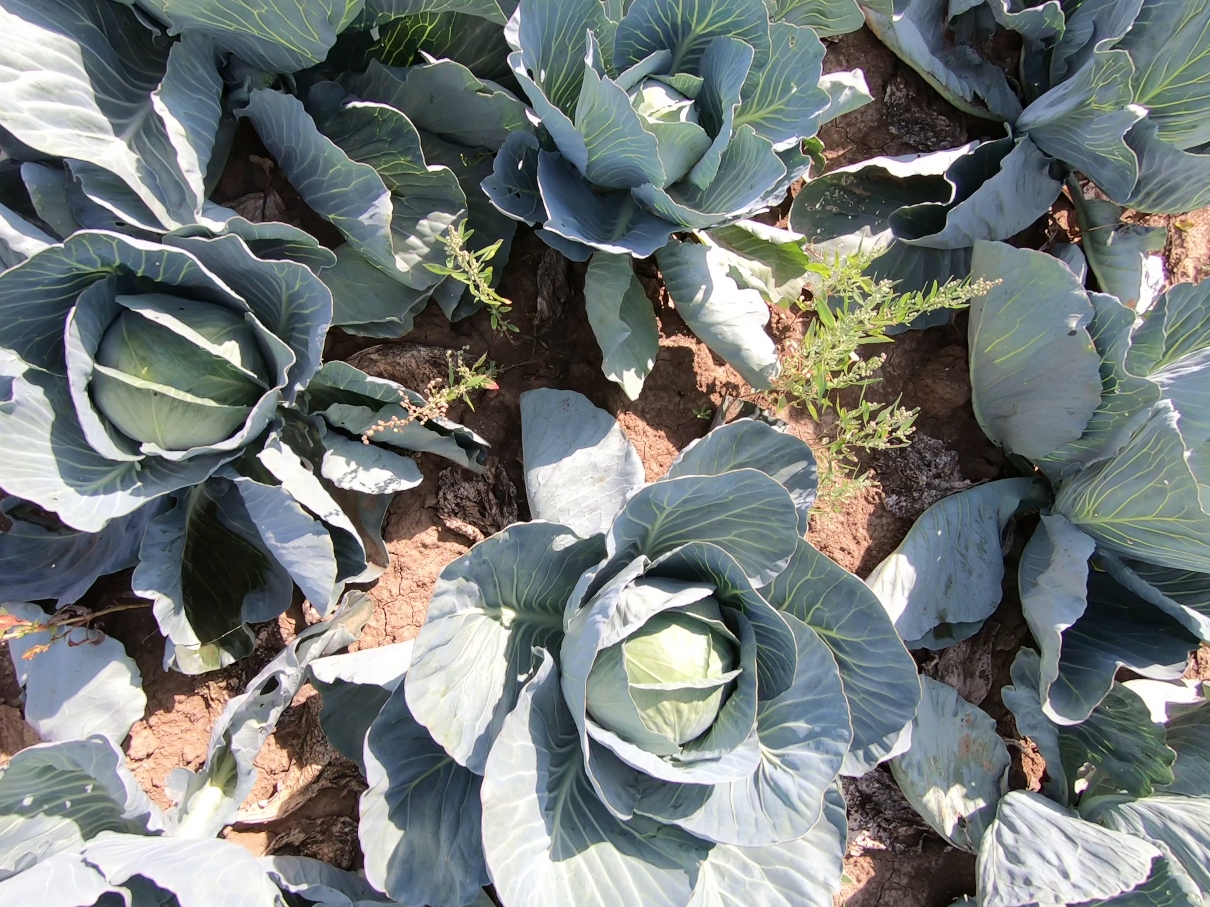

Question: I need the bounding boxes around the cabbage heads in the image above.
[588,593,734,743]
[612,74,694,161]
[93,299,258,438]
